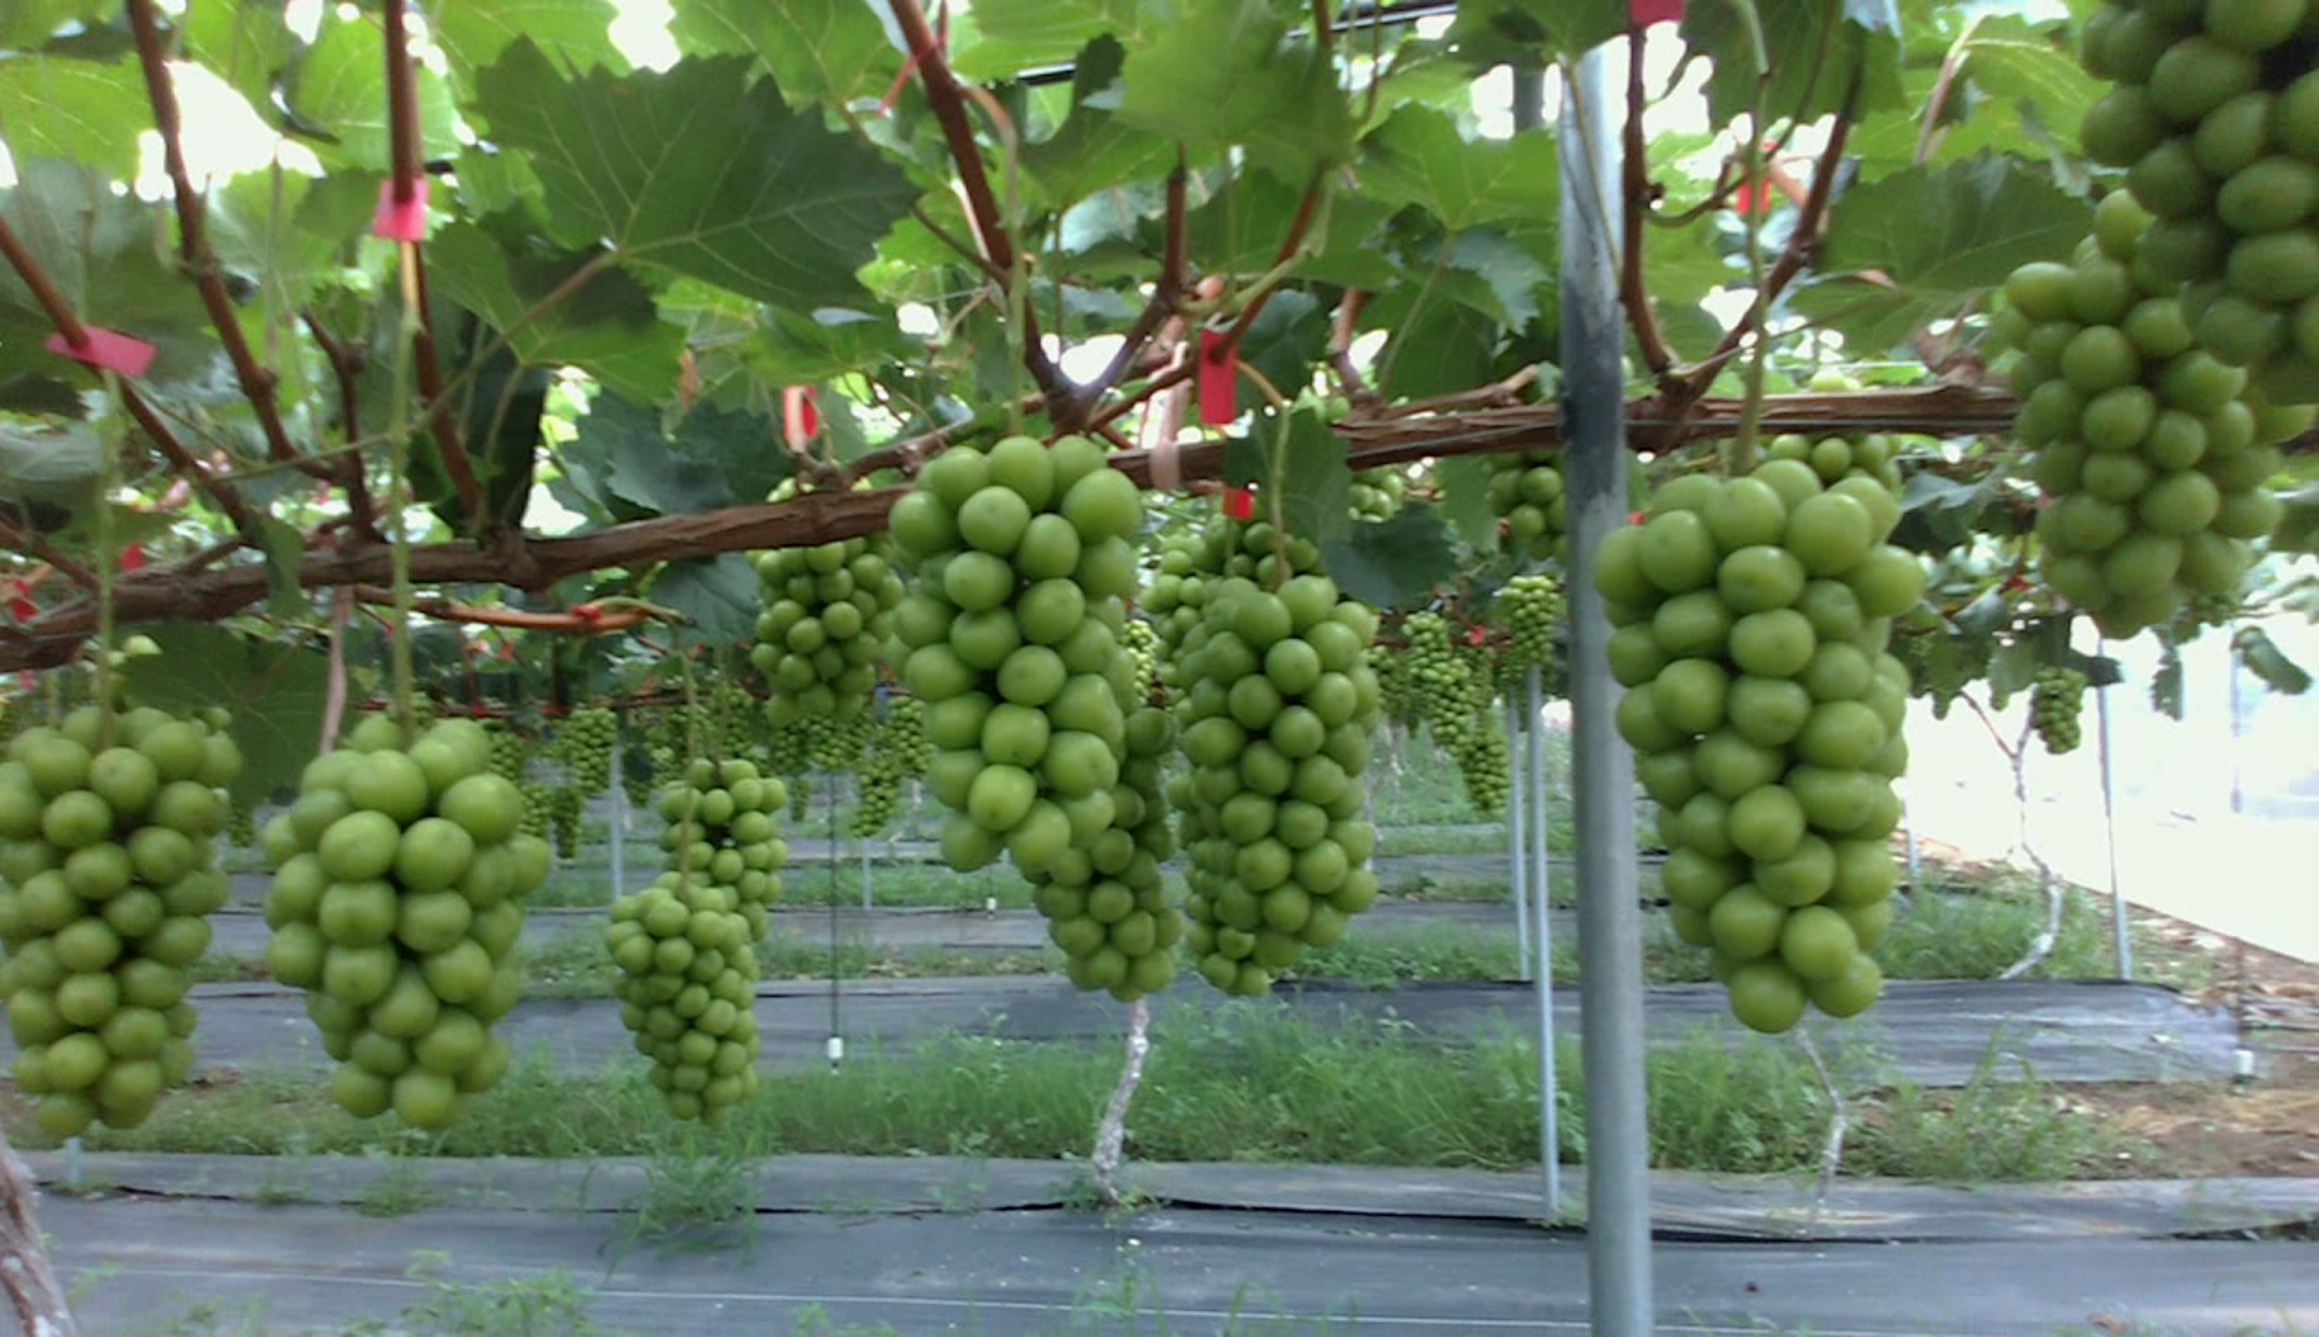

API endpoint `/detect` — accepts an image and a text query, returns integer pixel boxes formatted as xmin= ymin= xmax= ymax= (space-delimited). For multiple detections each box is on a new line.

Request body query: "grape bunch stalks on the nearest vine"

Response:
xmin=2090 ymin=184 xmax=2105 ymax=201
xmin=593 ymin=594 xmax=699 ymax=901
xmin=93 ymin=370 xmax=124 ymax=750
xmin=1730 ymin=0 xmax=1775 ymax=474
xmin=386 ymin=241 xmax=427 ymax=752
xmin=1236 ymin=360 xmax=1291 ymax=589
xmin=968 ymin=84 xmax=1026 ymax=435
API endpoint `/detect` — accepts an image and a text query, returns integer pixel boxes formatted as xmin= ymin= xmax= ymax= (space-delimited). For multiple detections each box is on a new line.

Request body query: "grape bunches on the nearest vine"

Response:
xmin=1182 ymin=578 xmax=1381 ymax=967
xmin=608 ymin=873 xmax=760 ymax=1129
xmin=0 ymin=704 xmax=242 ymax=1138
xmin=258 ymin=715 xmax=550 ymax=1133
xmin=886 ymin=436 xmax=1141 ymax=875
xmin=1999 ymin=191 xmax=2278 ymax=639
xmin=1592 ymin=461 xmax=1923 ymax=1036
xmin=2074 ymin=0 xmax=2317 ymax=446
xmin=1022 ymin=784 xmax=1182 ymax=1003
xmin=1165 ymin=769 xmax=1282 ymax=999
